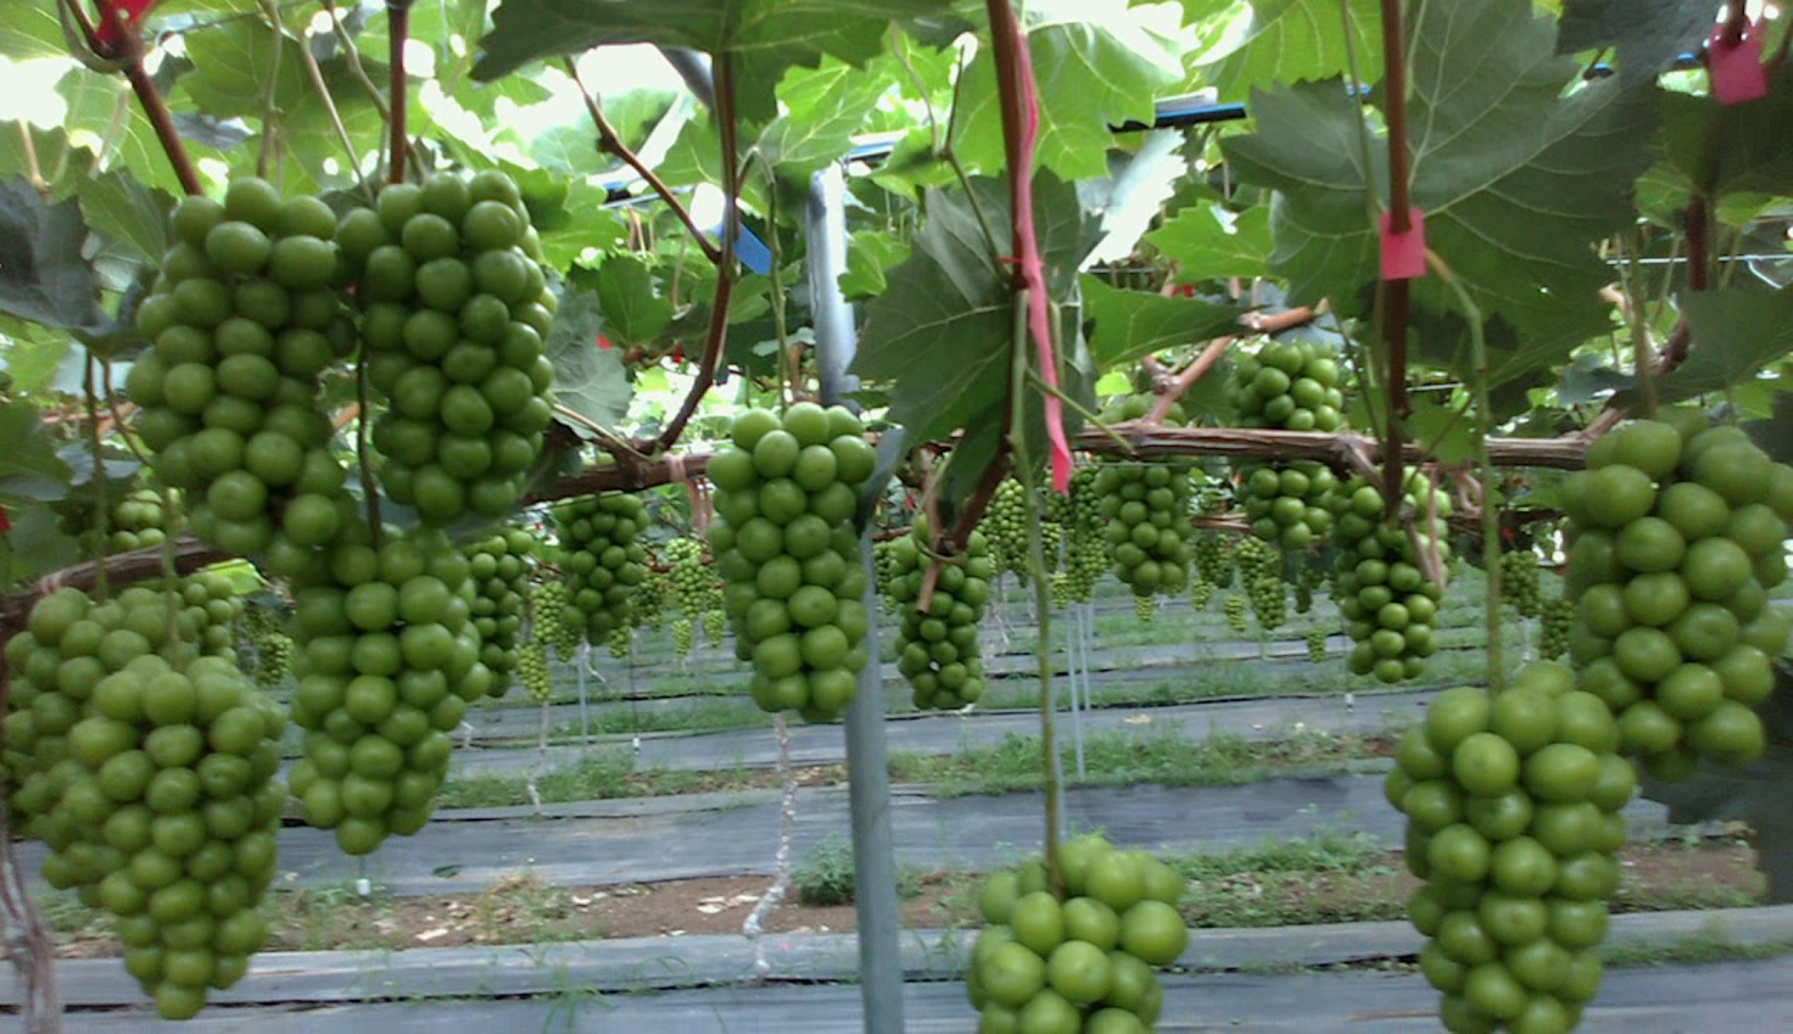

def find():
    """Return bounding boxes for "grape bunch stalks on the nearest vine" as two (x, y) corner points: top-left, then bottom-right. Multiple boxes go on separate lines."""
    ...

(1004, 287), (1072, 905)
(159, 490), (184, 674)
(1424, 244), (1504, 698)
(322, 4), (428, 184)
(355, 342), (382, 551)
(82, 349), (108, 606)
(1623, 224), (1655, 419)
(257, 6), (283, 180)
(740, 148), (789, 415)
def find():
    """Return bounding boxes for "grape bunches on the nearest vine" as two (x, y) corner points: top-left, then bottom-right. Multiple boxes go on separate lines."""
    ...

(1384, 662), (1635, 1031)
(1, 586), (171, 842)
(963, 836), (1188, 1033)
(283, 517), (491, 854)
(126, 177), (361, 576)
(705, 402), (878, 727)
(40, 653), (287, 1020)
(1559, 405), (1792, 784)
(336, 169), (556, 528)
